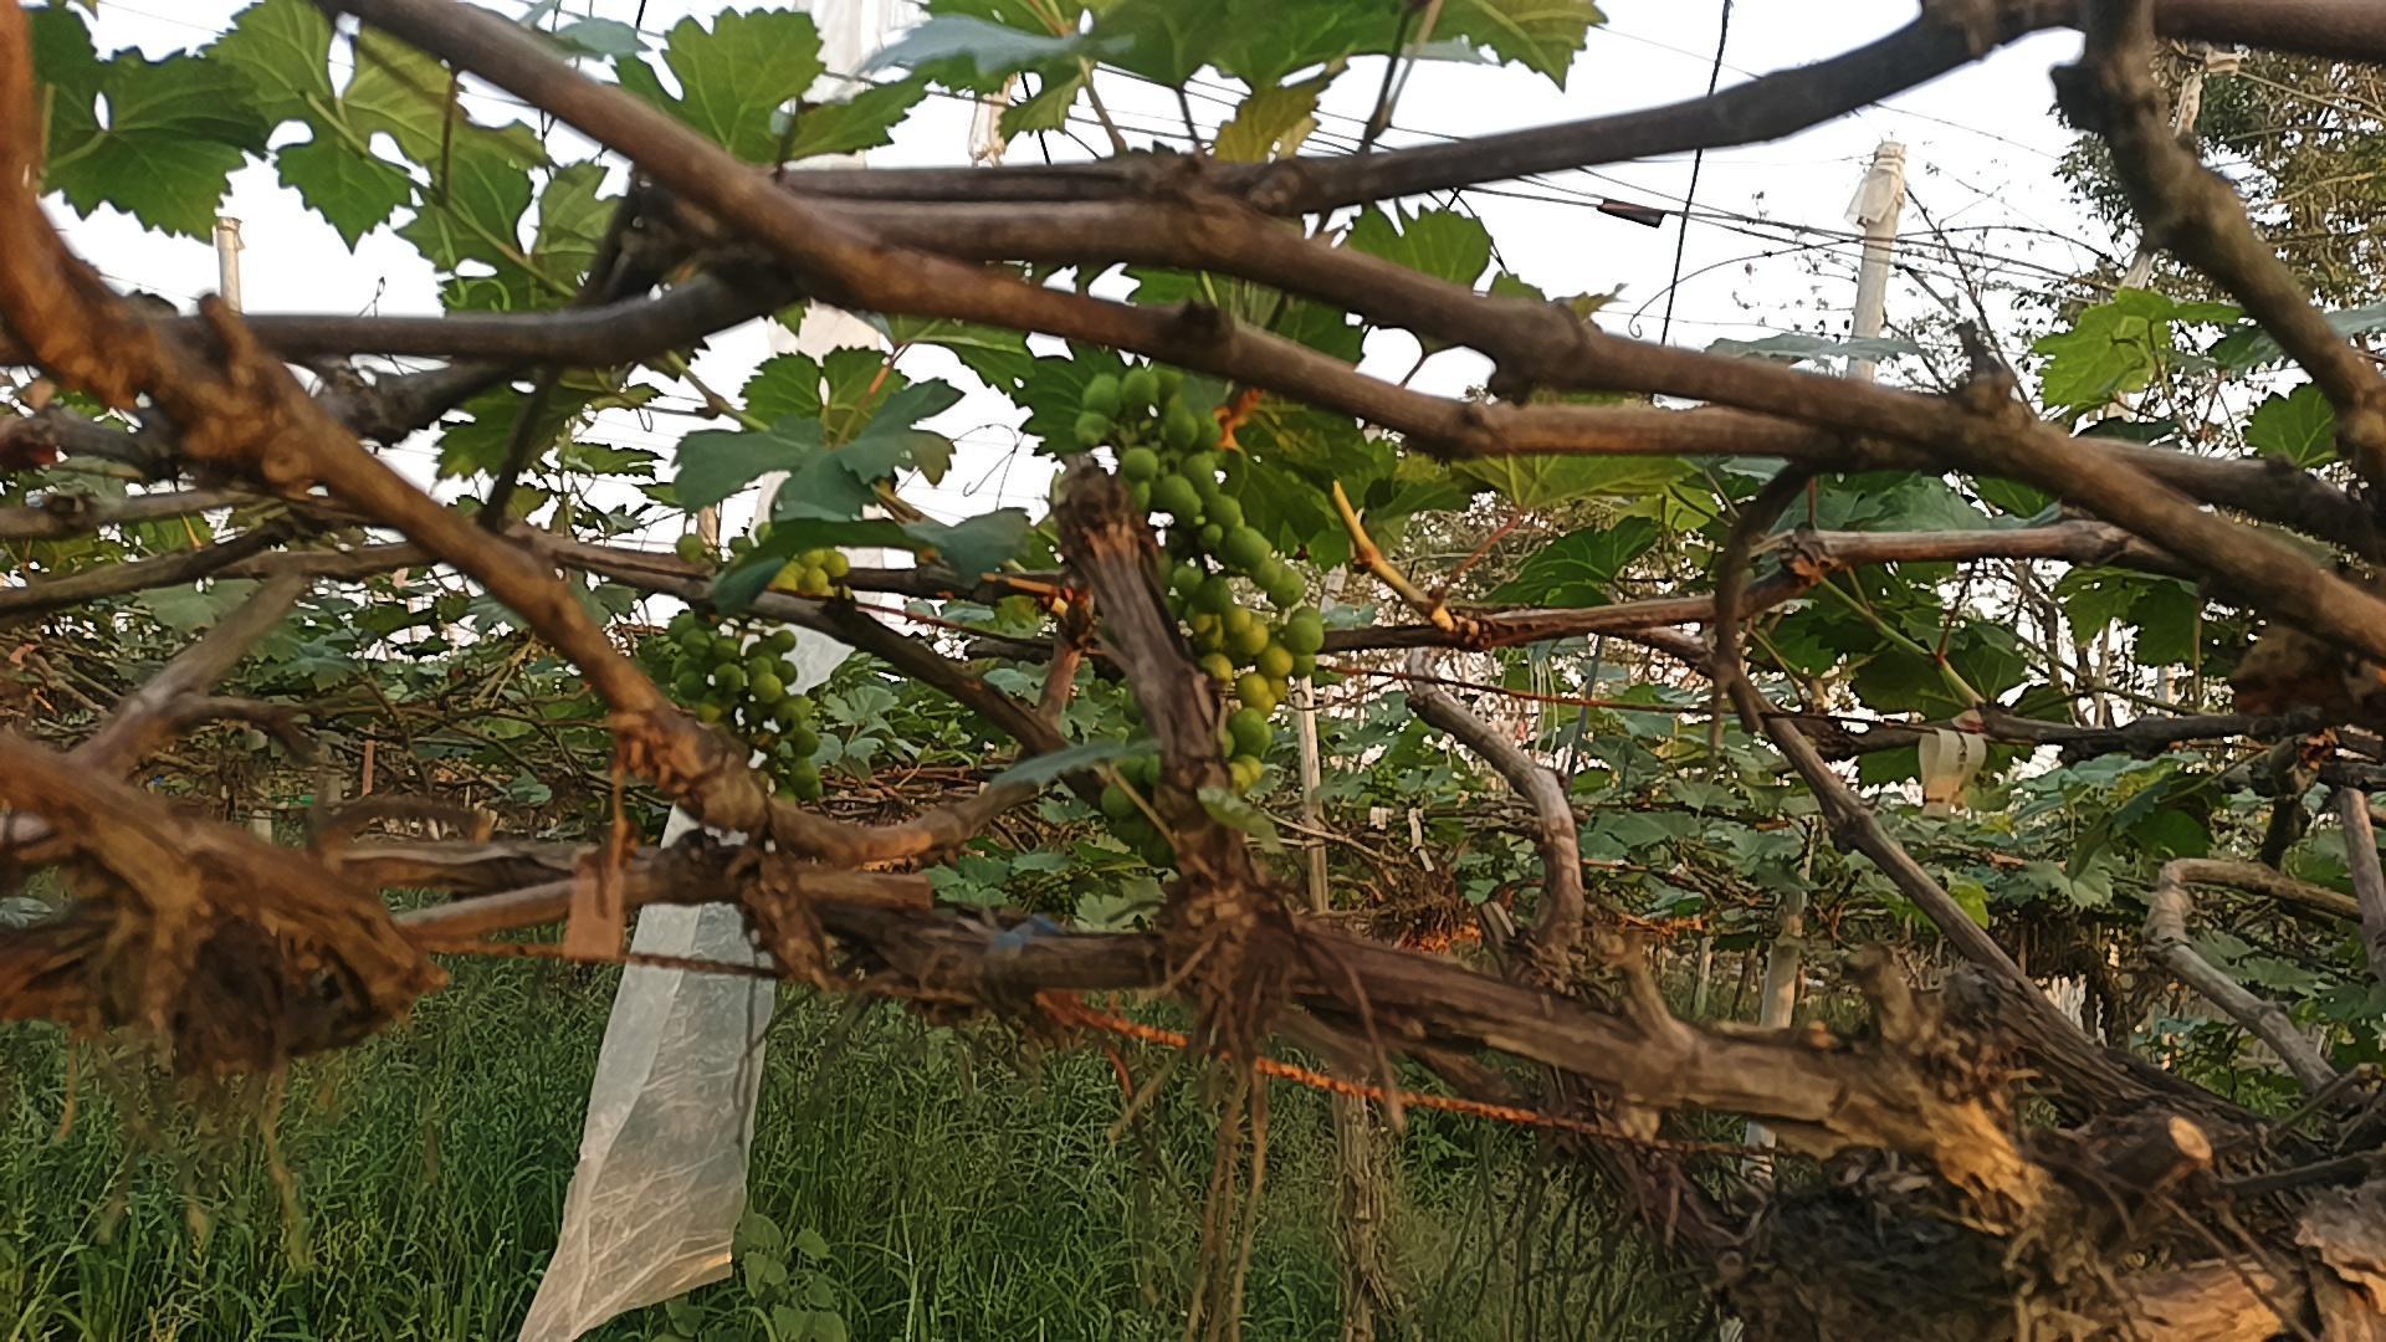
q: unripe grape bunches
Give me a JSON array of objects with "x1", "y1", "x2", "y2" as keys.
[
  {"x1": 667, "y1": 613, "x2": 823, "y2": 799},
  {"x1": 676, "y1": 522, "x2": 857, "y2": 600},
  {"x1": 1075, "y1": 364, "x2": 1323, "y2": 867}
]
